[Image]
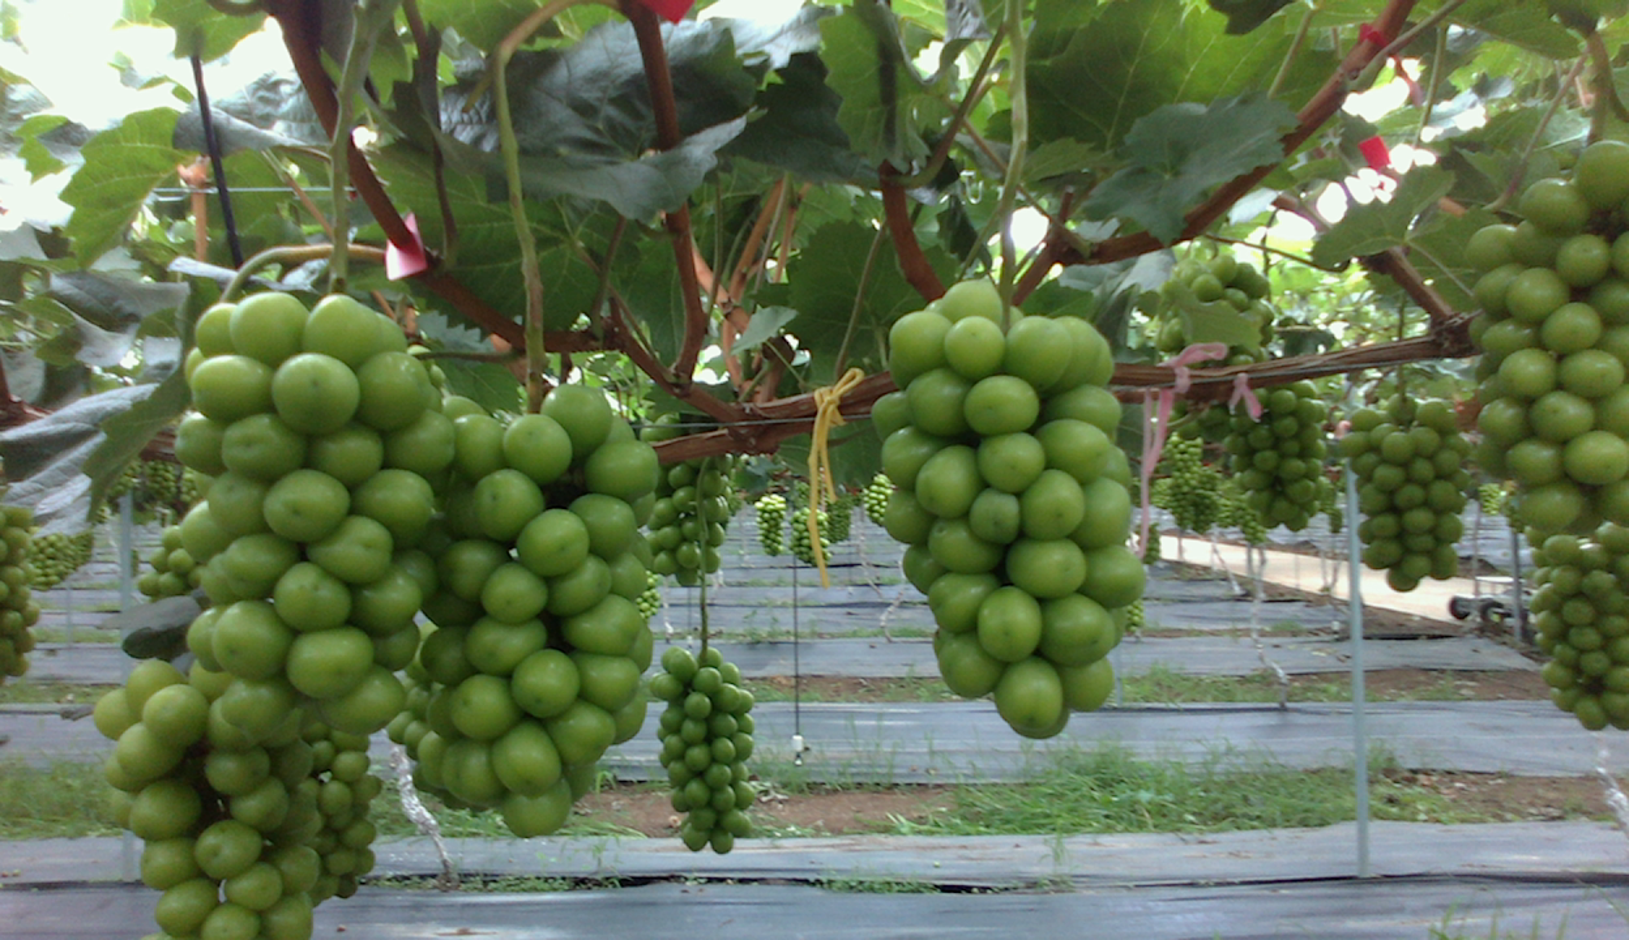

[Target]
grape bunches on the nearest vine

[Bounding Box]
[1465,140,1628,539]
[87,655,322,939]
[867,279,1146,739]
[174,291,457,742]
[412,383,660,839]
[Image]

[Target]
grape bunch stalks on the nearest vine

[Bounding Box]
[328,0,397,291]
[1581,26,1609,140]
[461,1,574,415]
[996,0,1027,336]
